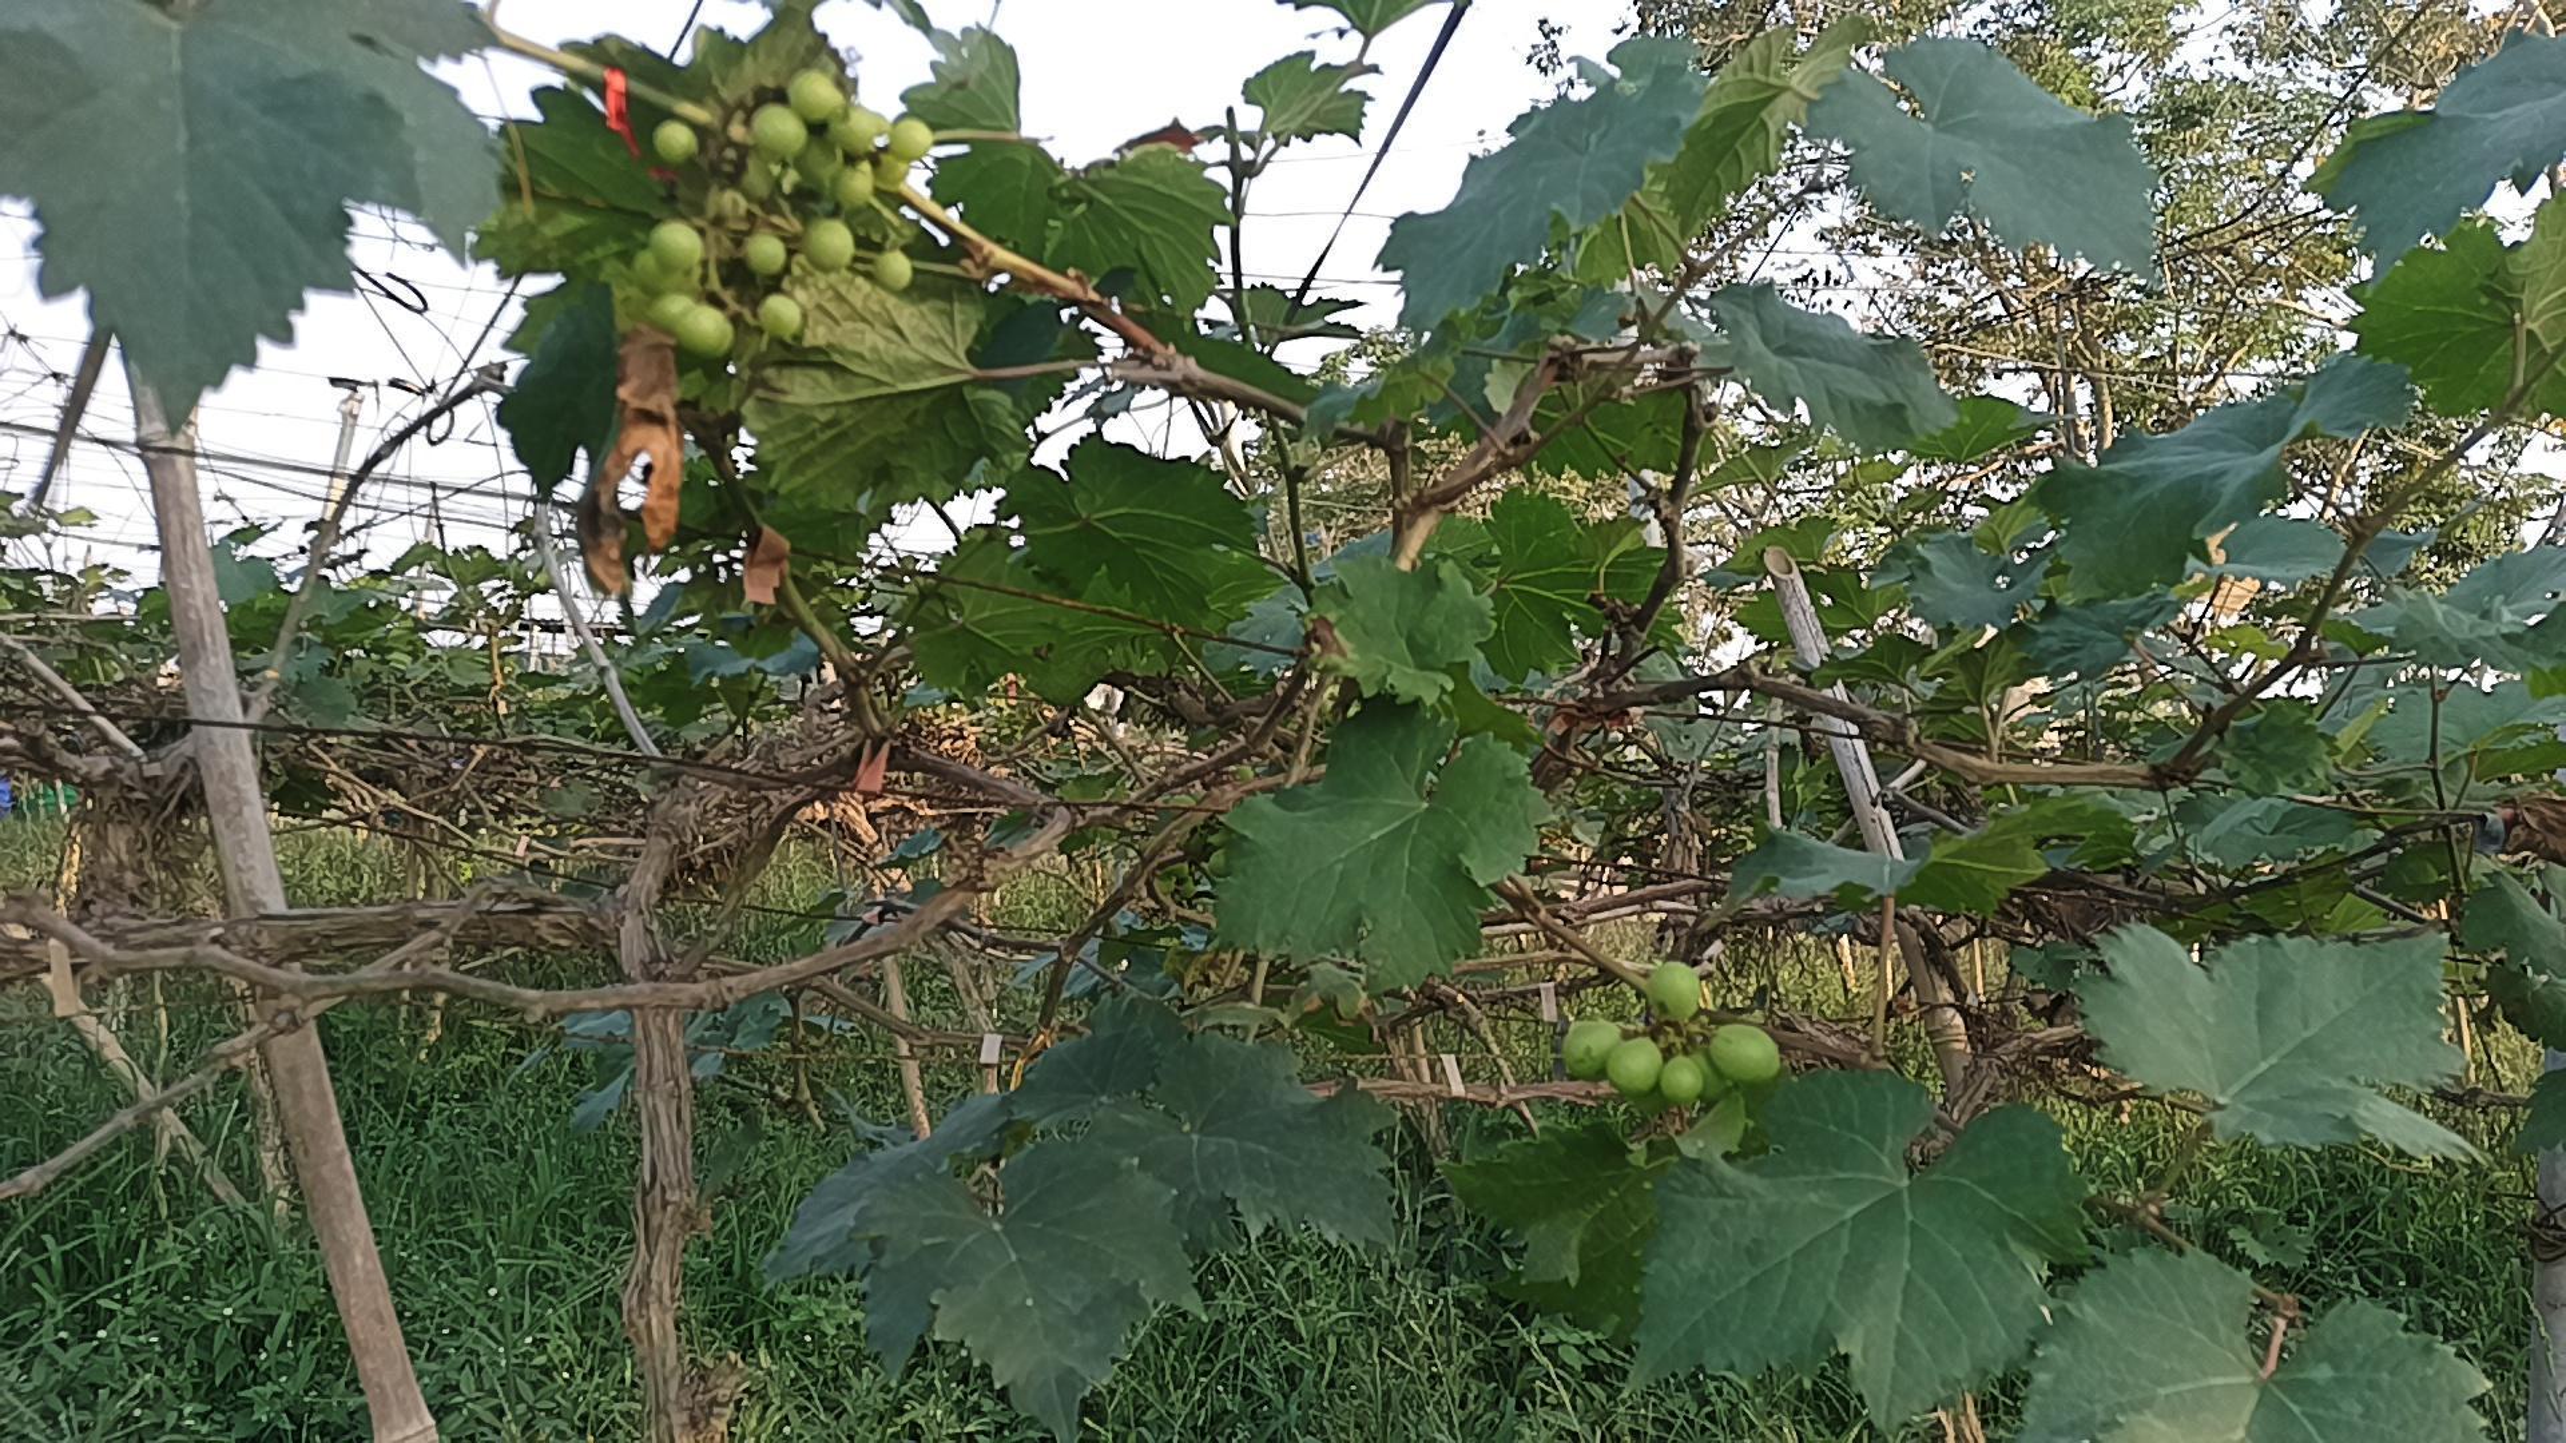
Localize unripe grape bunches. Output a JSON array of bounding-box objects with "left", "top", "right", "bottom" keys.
[
  {"left": 628, "top": 64, "right": 936, "bottom": 359},
  {"left": 1564, "top": 963, "right": 1779, "bottom": 1105}
]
